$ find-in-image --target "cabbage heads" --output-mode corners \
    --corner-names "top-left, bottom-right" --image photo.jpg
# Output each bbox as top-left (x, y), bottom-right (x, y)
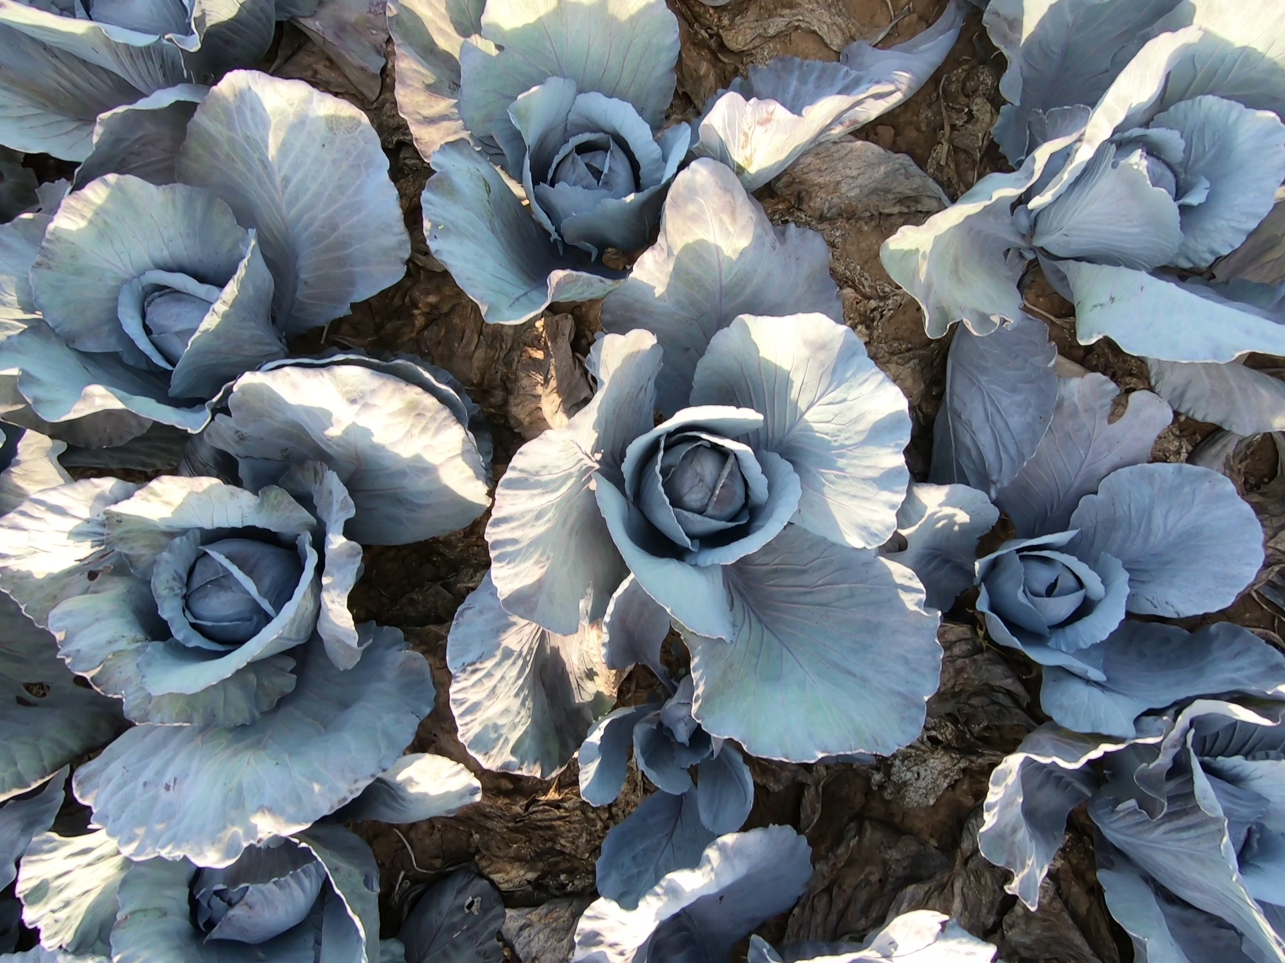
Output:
top-left (653, 442), bottom-right (744, 534)
top-left (1094, 149), bottom-right (1181, 238)
top-left (86, 1), bottom-right (211, 74)
top-left (1114, 772), bottom-right (1252, 883)
top-left (1007, 556), bottom-right (1084, 624)
top-left (185, 546), bottom-right (305, 641)
top-left (546, 152), bottom-right (634, 235)
top-left (145, 286), bottom-right (254, 370)
top-left (196, 835), bottom-right (328, 942)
